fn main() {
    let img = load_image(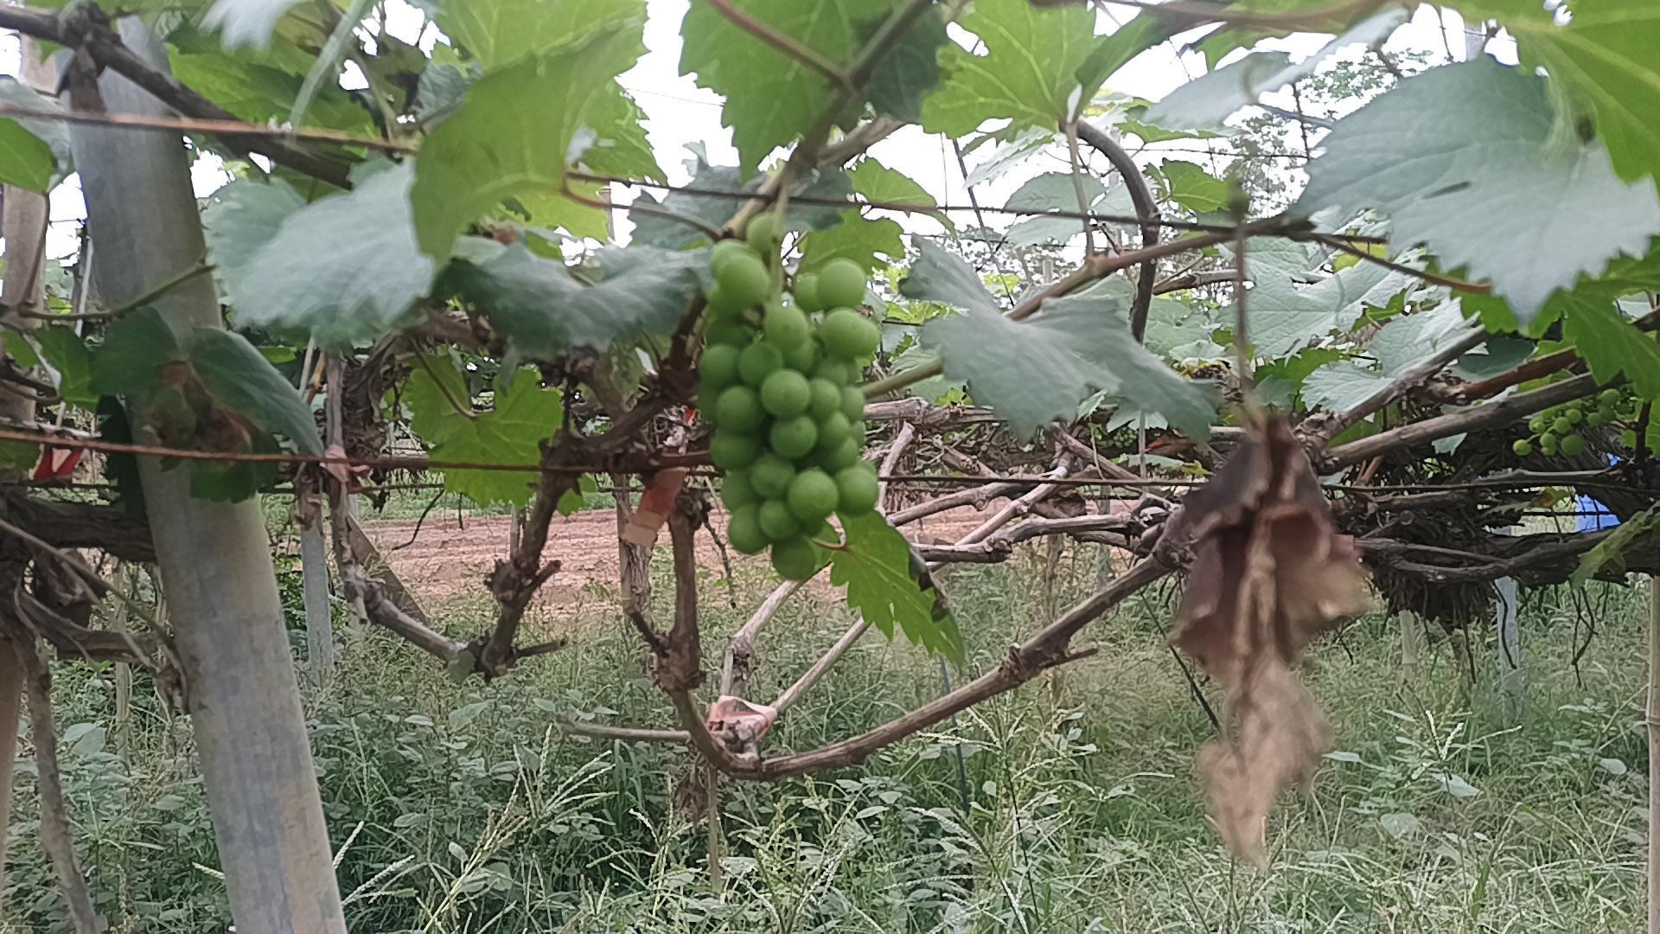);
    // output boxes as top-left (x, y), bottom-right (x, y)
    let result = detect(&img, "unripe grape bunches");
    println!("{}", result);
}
top-left (1512, 387), bottom-right (1644, 469)
top-left (698, 211), bottom-right (880, 580)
